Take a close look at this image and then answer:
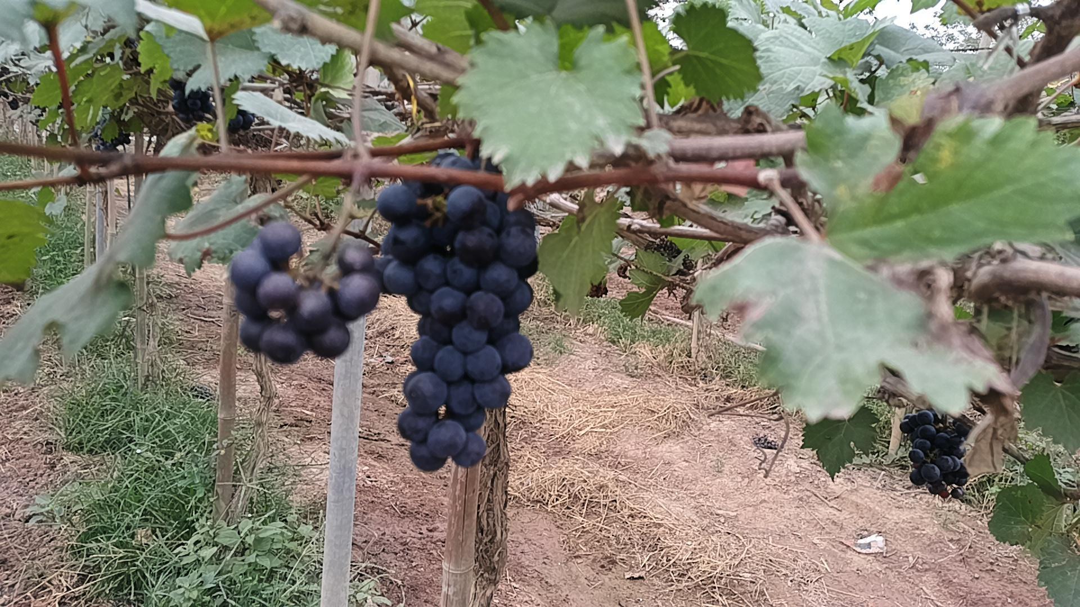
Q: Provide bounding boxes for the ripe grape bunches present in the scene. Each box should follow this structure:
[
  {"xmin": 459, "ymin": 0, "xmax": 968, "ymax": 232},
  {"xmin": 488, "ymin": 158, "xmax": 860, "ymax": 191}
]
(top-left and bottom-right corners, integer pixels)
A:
[
  {"xmin": 168, "ymin": 78, "xmax": 214, "ymax": 123},
  {"xmin": 900, "ymin": 409, "xmax": 971, "ymax": 499},
  {"xmin": 88, "ymin": 118, "xmax": 132, "ymax": 152},
  {"xmin": 229, "ymin": 223, "xmax": 380, "ymax": 363},
  {"xmin": 227, "ymin": 109, "xmax": 255, "ymax": 135},
  {"xmin": 374, "ymin": 147, "xmax": 538, "ymax": 471}
]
